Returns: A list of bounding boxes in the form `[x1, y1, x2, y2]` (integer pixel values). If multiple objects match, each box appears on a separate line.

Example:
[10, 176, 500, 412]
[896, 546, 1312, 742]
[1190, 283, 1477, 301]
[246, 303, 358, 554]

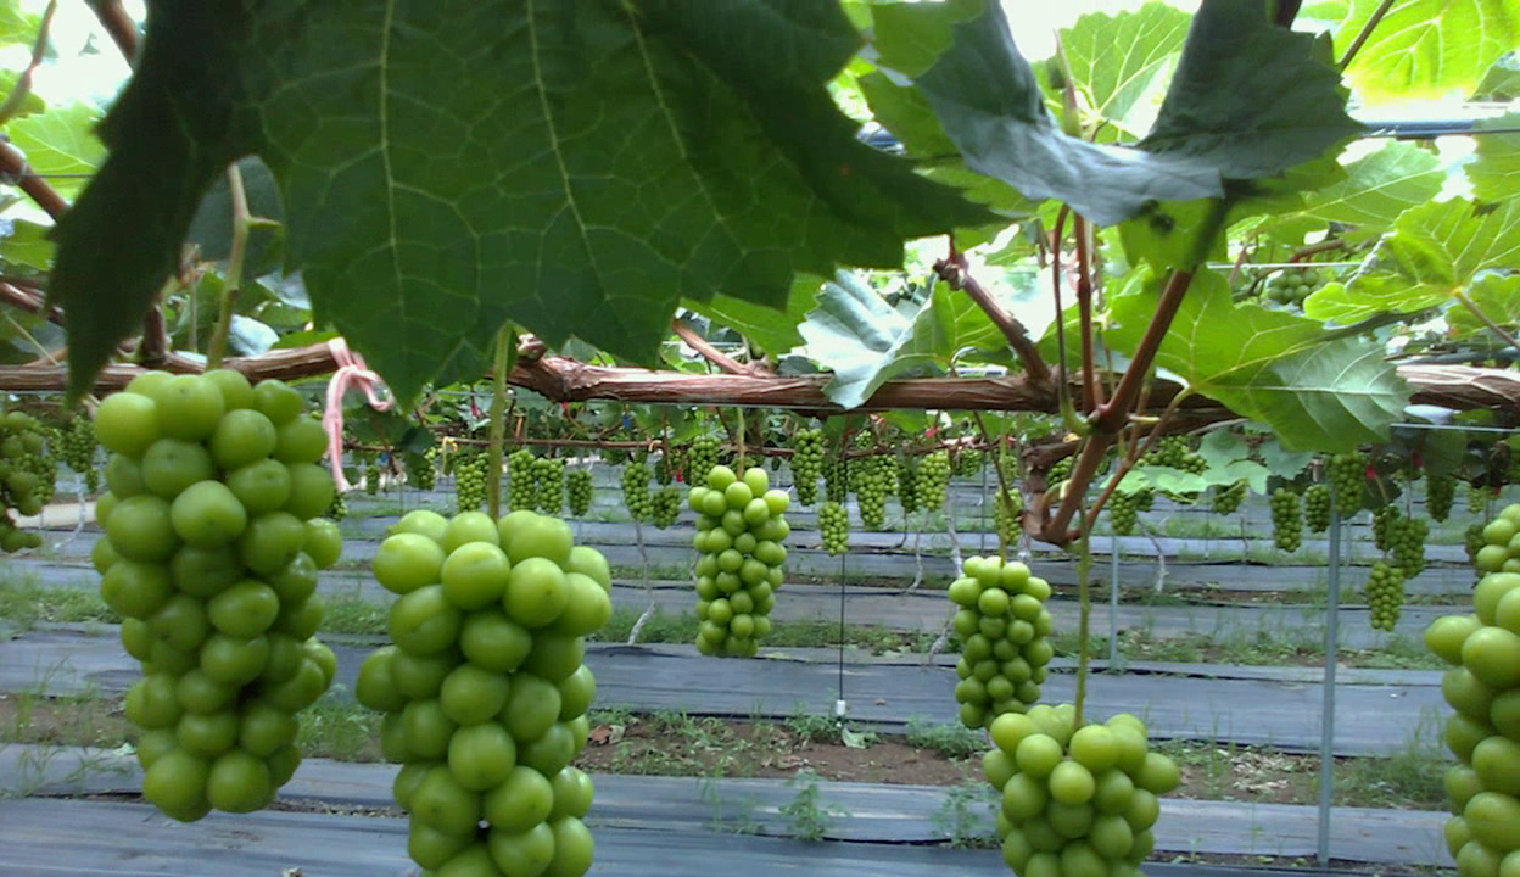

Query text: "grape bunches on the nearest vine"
[356, 508, 615, 875]
[1423, 574, 1519, 876]
[984, 703, 1181, 876]
[91, 368, 345, 823]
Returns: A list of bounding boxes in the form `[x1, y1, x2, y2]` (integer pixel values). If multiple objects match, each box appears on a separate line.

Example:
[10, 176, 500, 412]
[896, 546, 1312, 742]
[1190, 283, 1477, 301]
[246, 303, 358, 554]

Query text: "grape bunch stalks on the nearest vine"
[487, 323, 513, 523]
[1074, 499, 1094, 732]
[203, 163, 250, 372]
